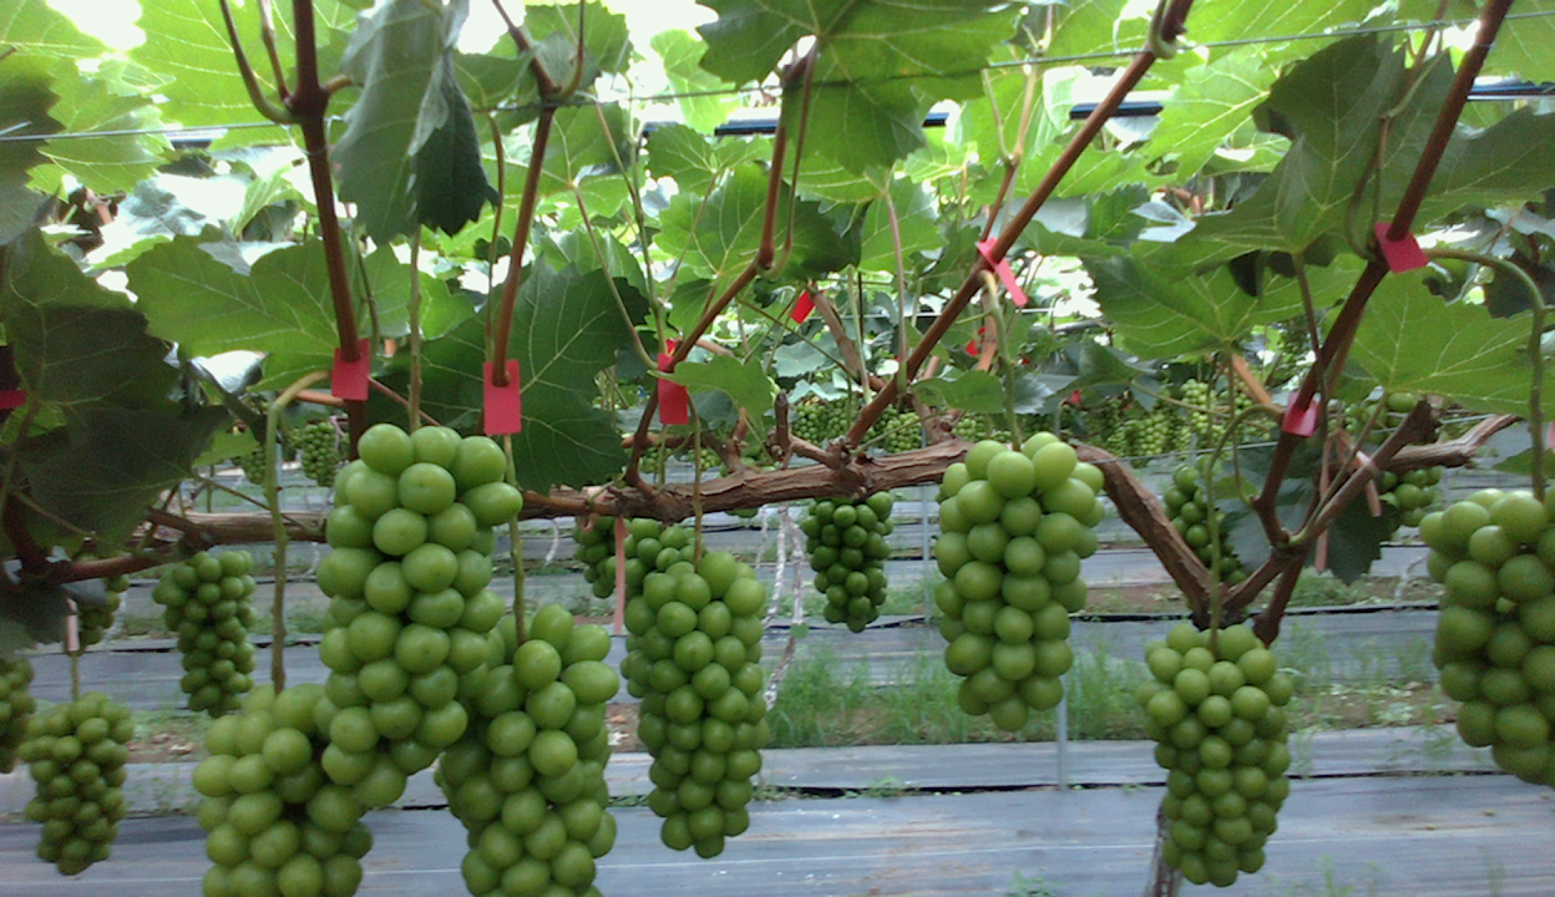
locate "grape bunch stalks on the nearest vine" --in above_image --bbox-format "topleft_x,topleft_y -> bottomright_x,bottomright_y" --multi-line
978,270 -> 1022,452
265,371 -> 335,696
1419,249 -> 1544,503
1206,404 -> 1282,653
687,394 -> 701,573
503,436 -> 527,649
406,229 -> 421,429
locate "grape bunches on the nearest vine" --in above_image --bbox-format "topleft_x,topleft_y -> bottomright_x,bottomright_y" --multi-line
441,607 -> 619,896
1133,624 -> 1296,886
314,422 -> 518,809
621,551 -> 769,860
933,431 -> 1105,733
191,683 -> 373,896
1418,486 -> 1554,789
